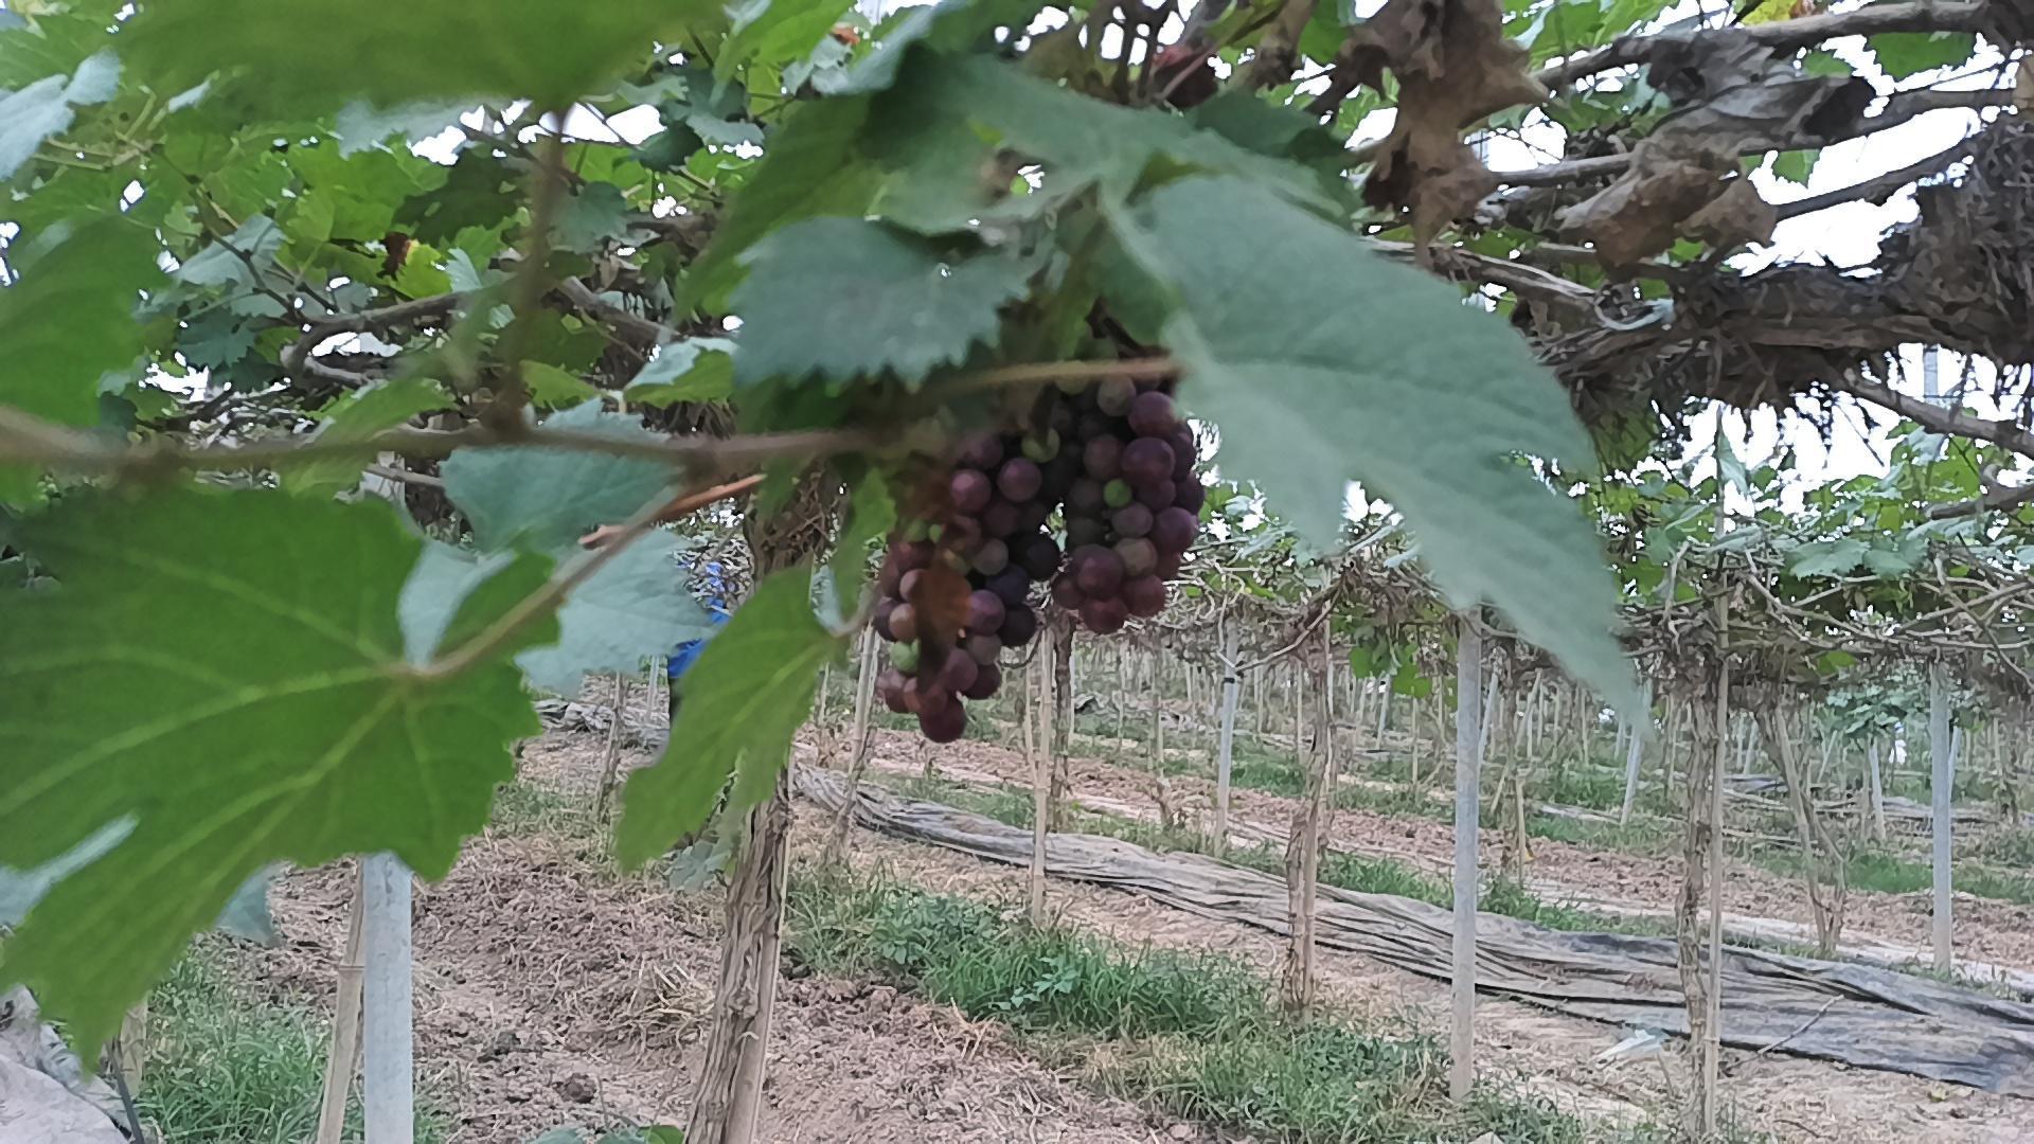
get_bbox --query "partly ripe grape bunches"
[1036,294,1203,633]
[870,428,1074,743]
